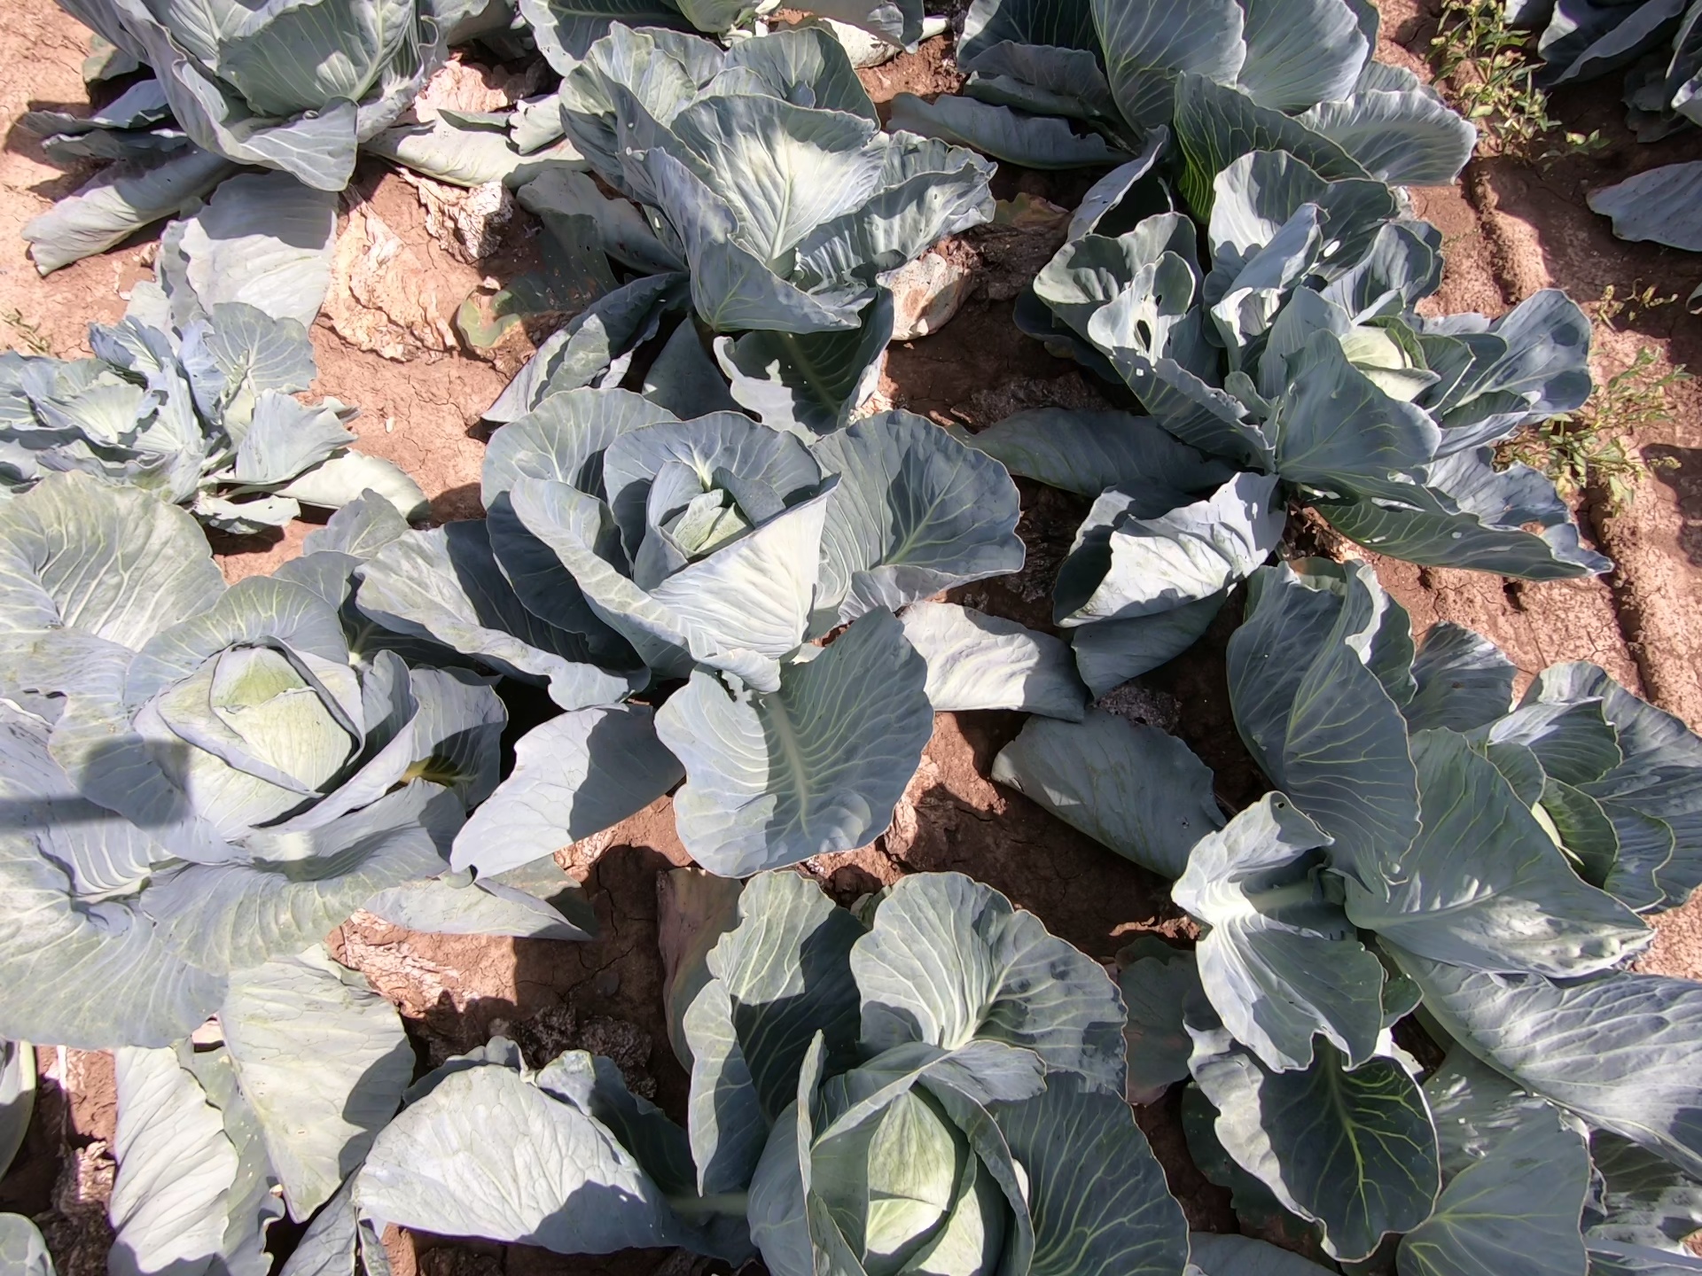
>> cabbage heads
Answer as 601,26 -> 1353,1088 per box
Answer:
637,505 -> 784,635
1355,769 -> 1569,960
132,649 -> 360,836
1294,320 -> 1428,447
765,1064 -> 1023,1272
